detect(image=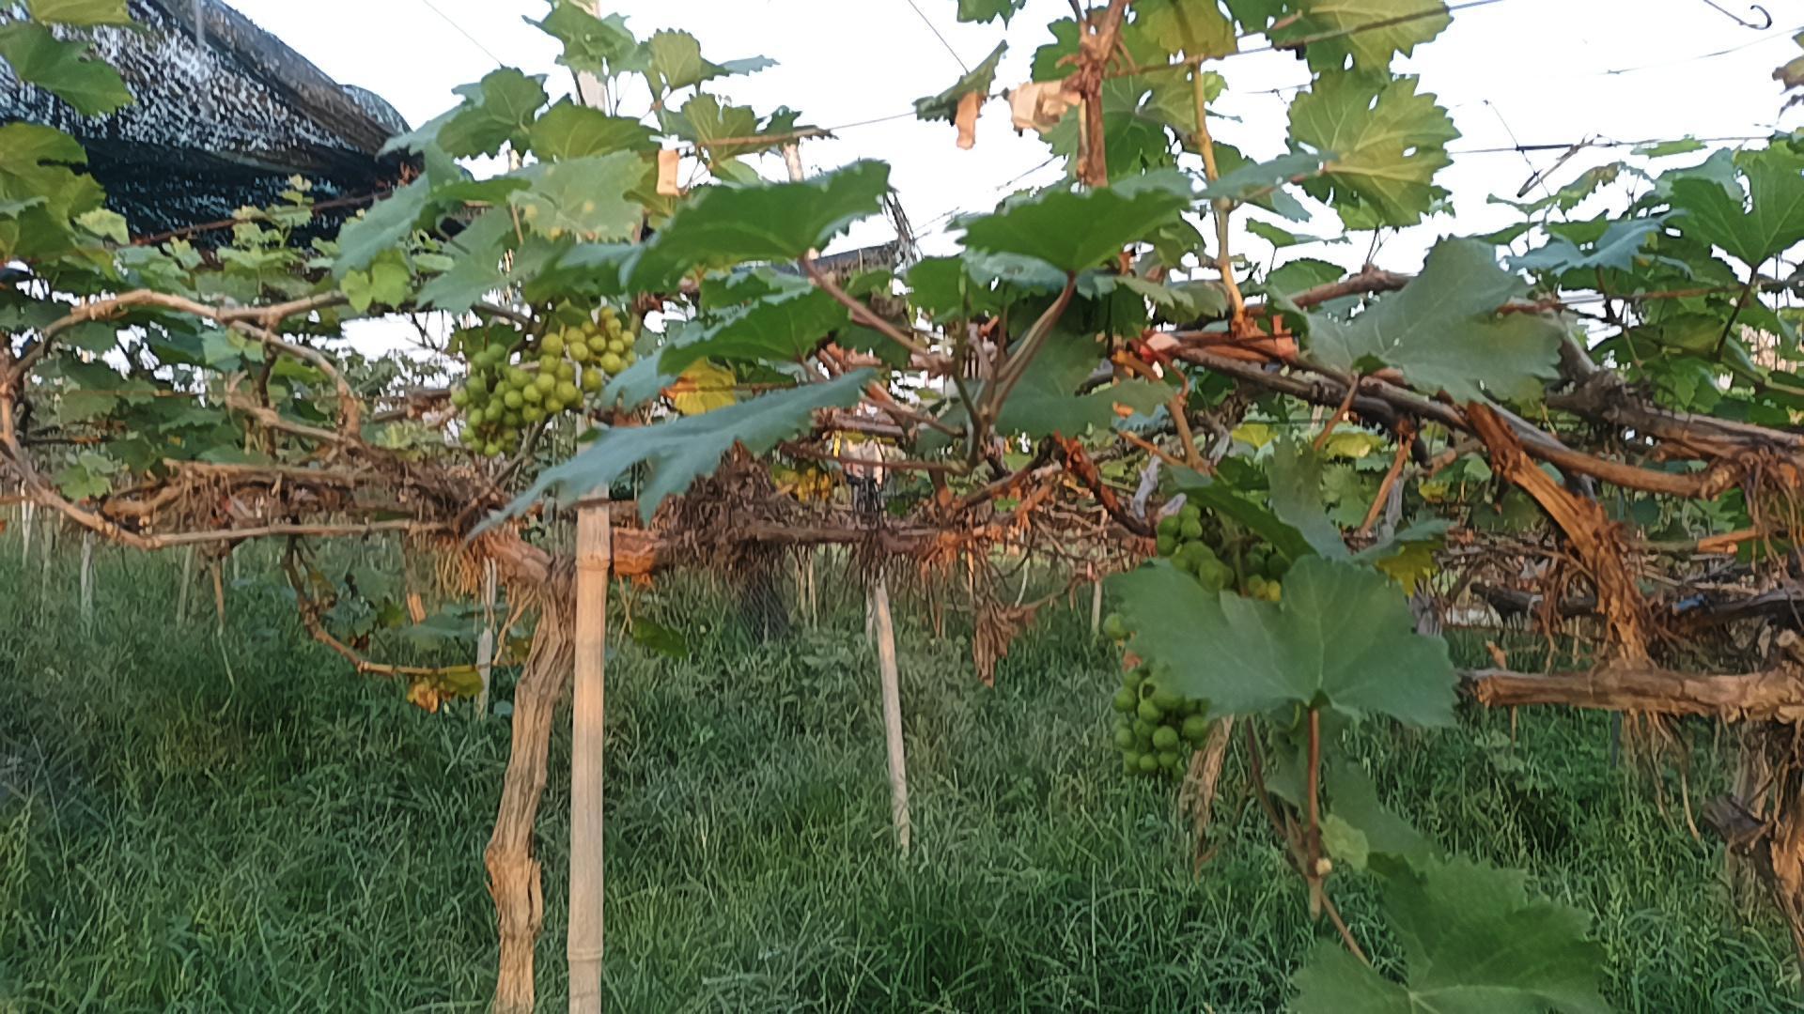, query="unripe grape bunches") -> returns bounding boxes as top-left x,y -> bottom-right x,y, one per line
1103,505 -> 1288,776
452,306 -> 641,455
